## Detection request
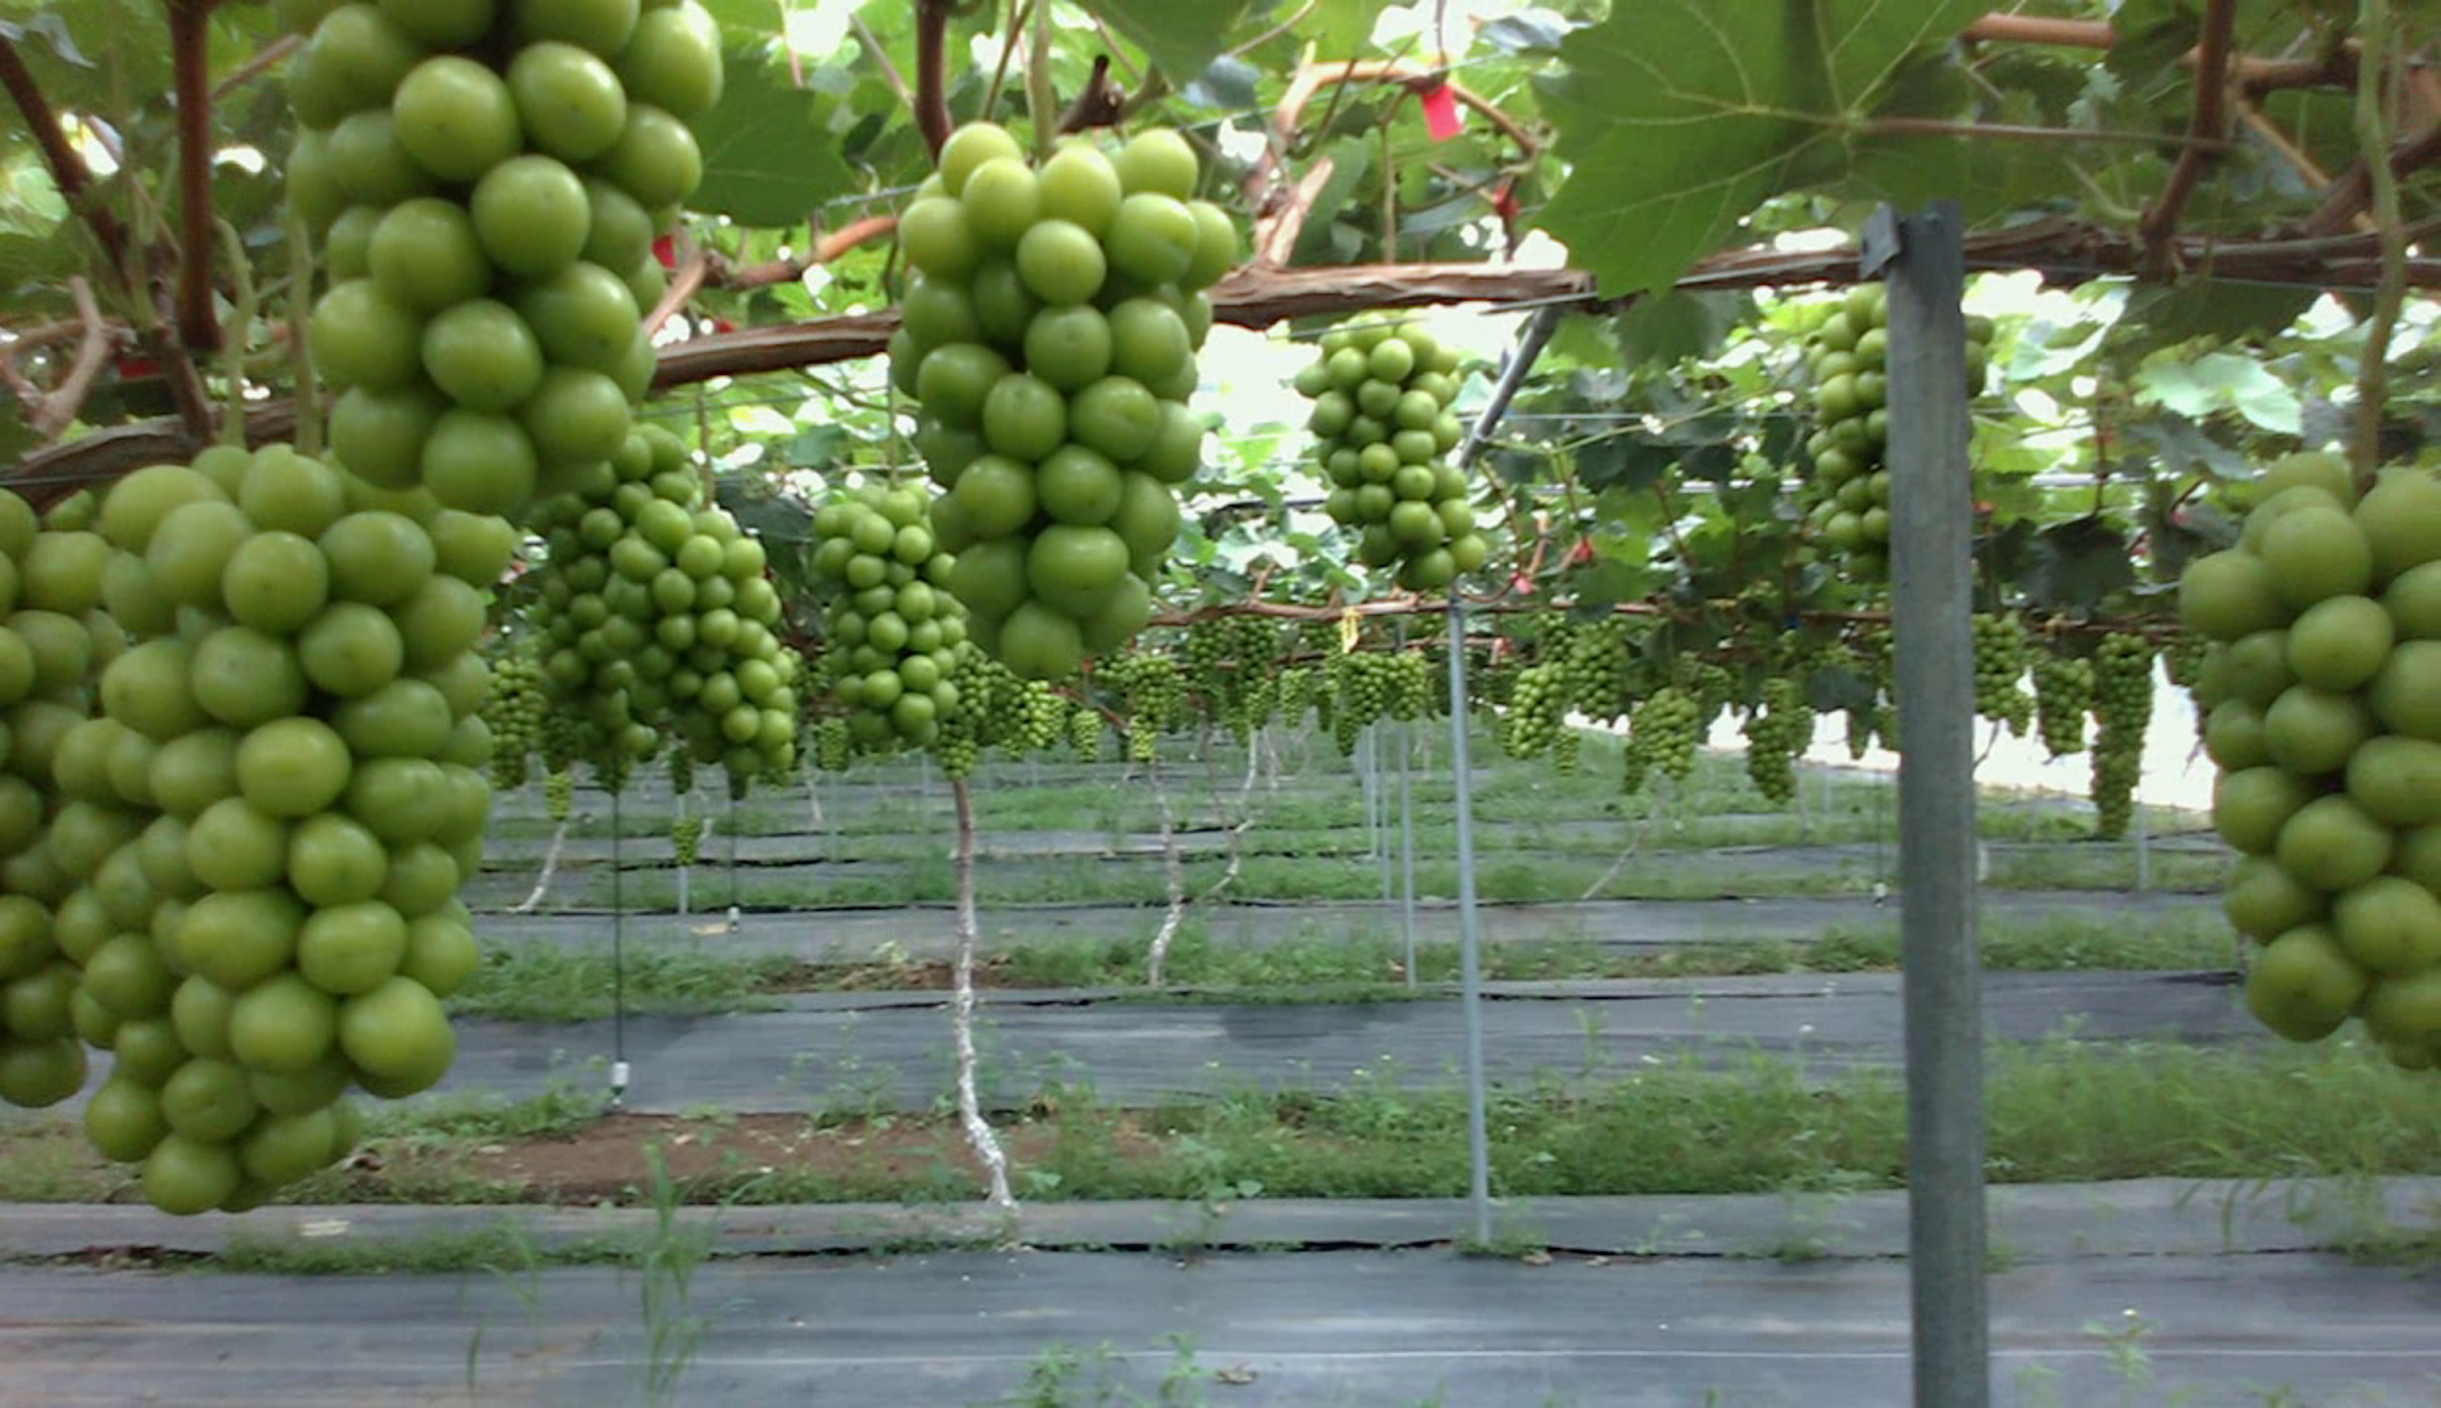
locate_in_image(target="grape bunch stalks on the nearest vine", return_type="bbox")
[2343,2,2406,505]
[1027,0,1056,166]
[286,211,325,454]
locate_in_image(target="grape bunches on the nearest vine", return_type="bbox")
[47,440,518,1218]
[2177,450,2439,1074]
[278,2,728,518]
[886,119,1240,682]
